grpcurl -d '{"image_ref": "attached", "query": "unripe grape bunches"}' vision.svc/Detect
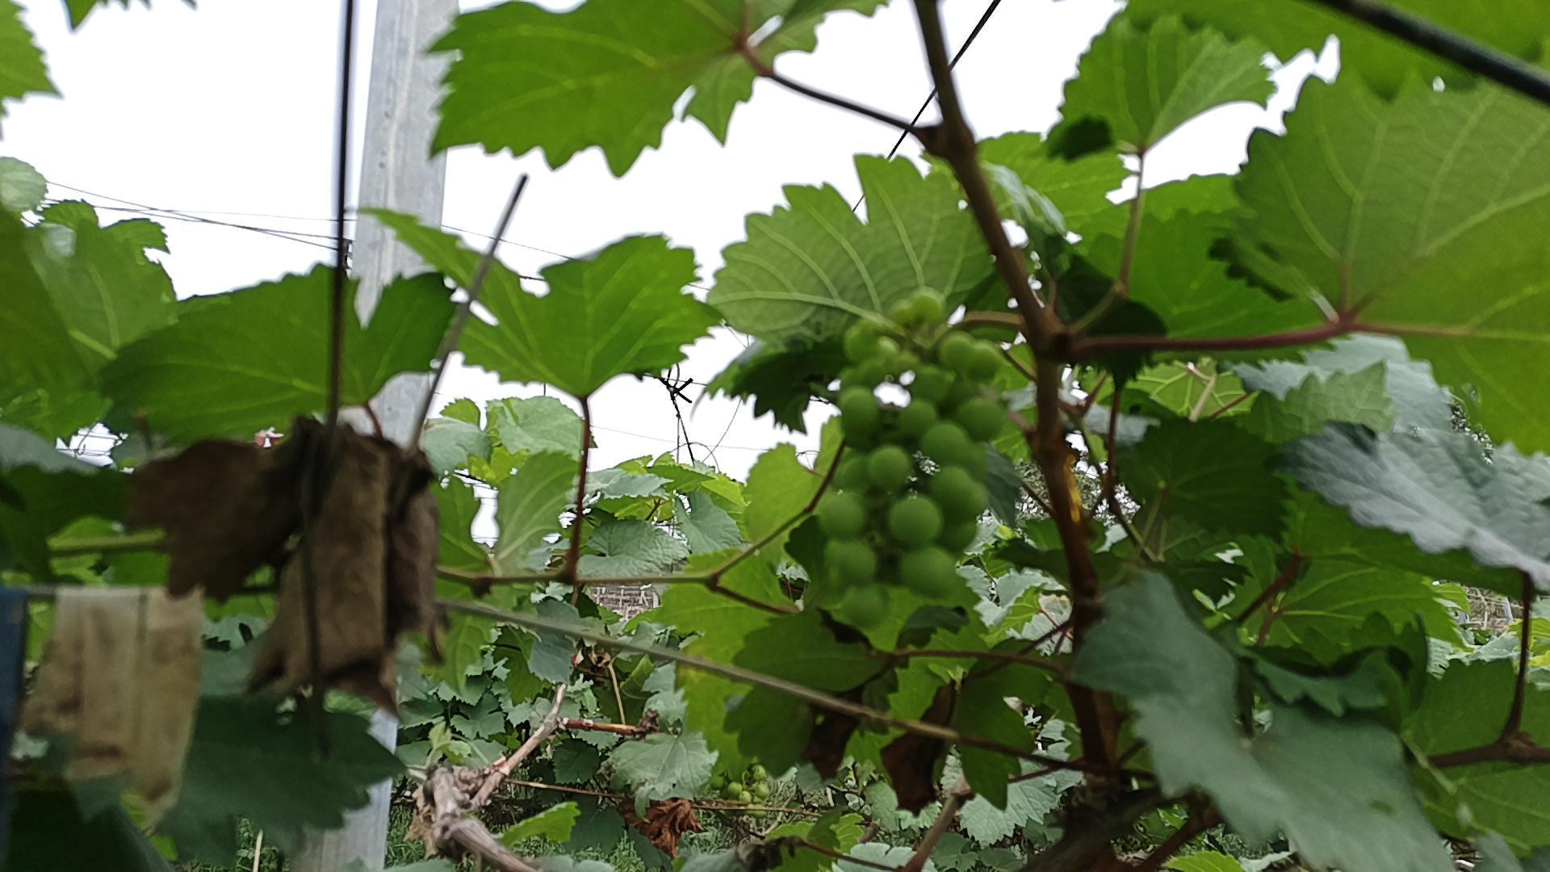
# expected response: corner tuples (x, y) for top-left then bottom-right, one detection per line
(709, 757), (769, 817)
(817, 296), (1005, 630)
